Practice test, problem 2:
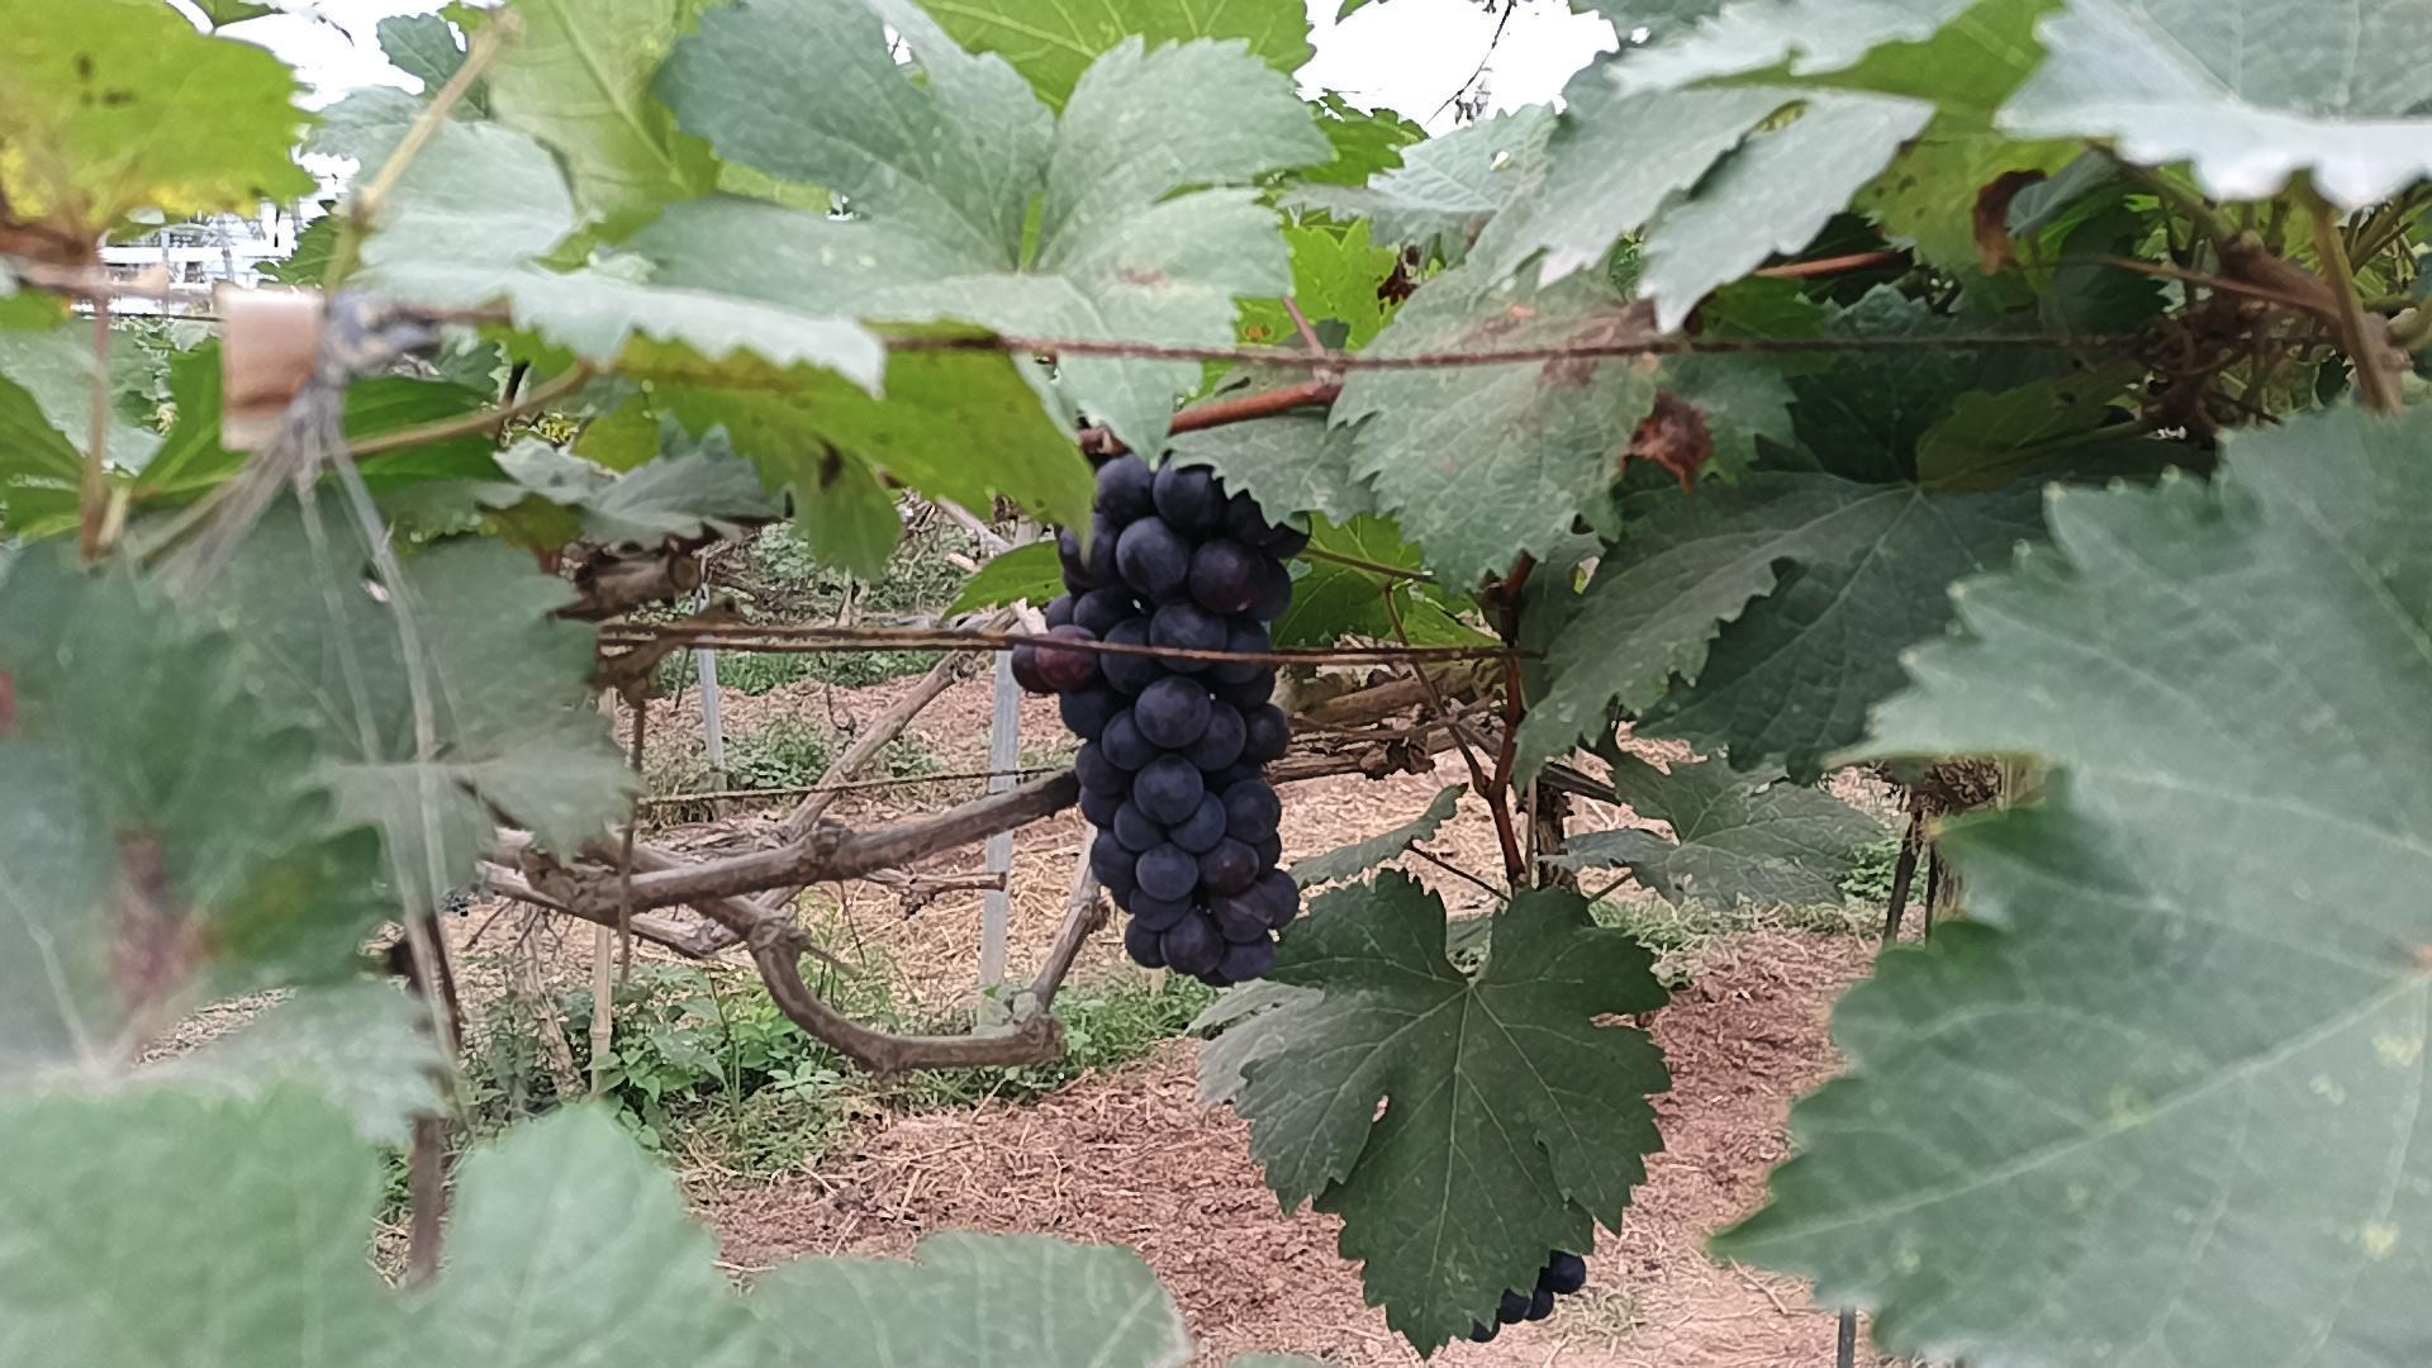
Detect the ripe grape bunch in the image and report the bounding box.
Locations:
[1011,452,1308,985]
